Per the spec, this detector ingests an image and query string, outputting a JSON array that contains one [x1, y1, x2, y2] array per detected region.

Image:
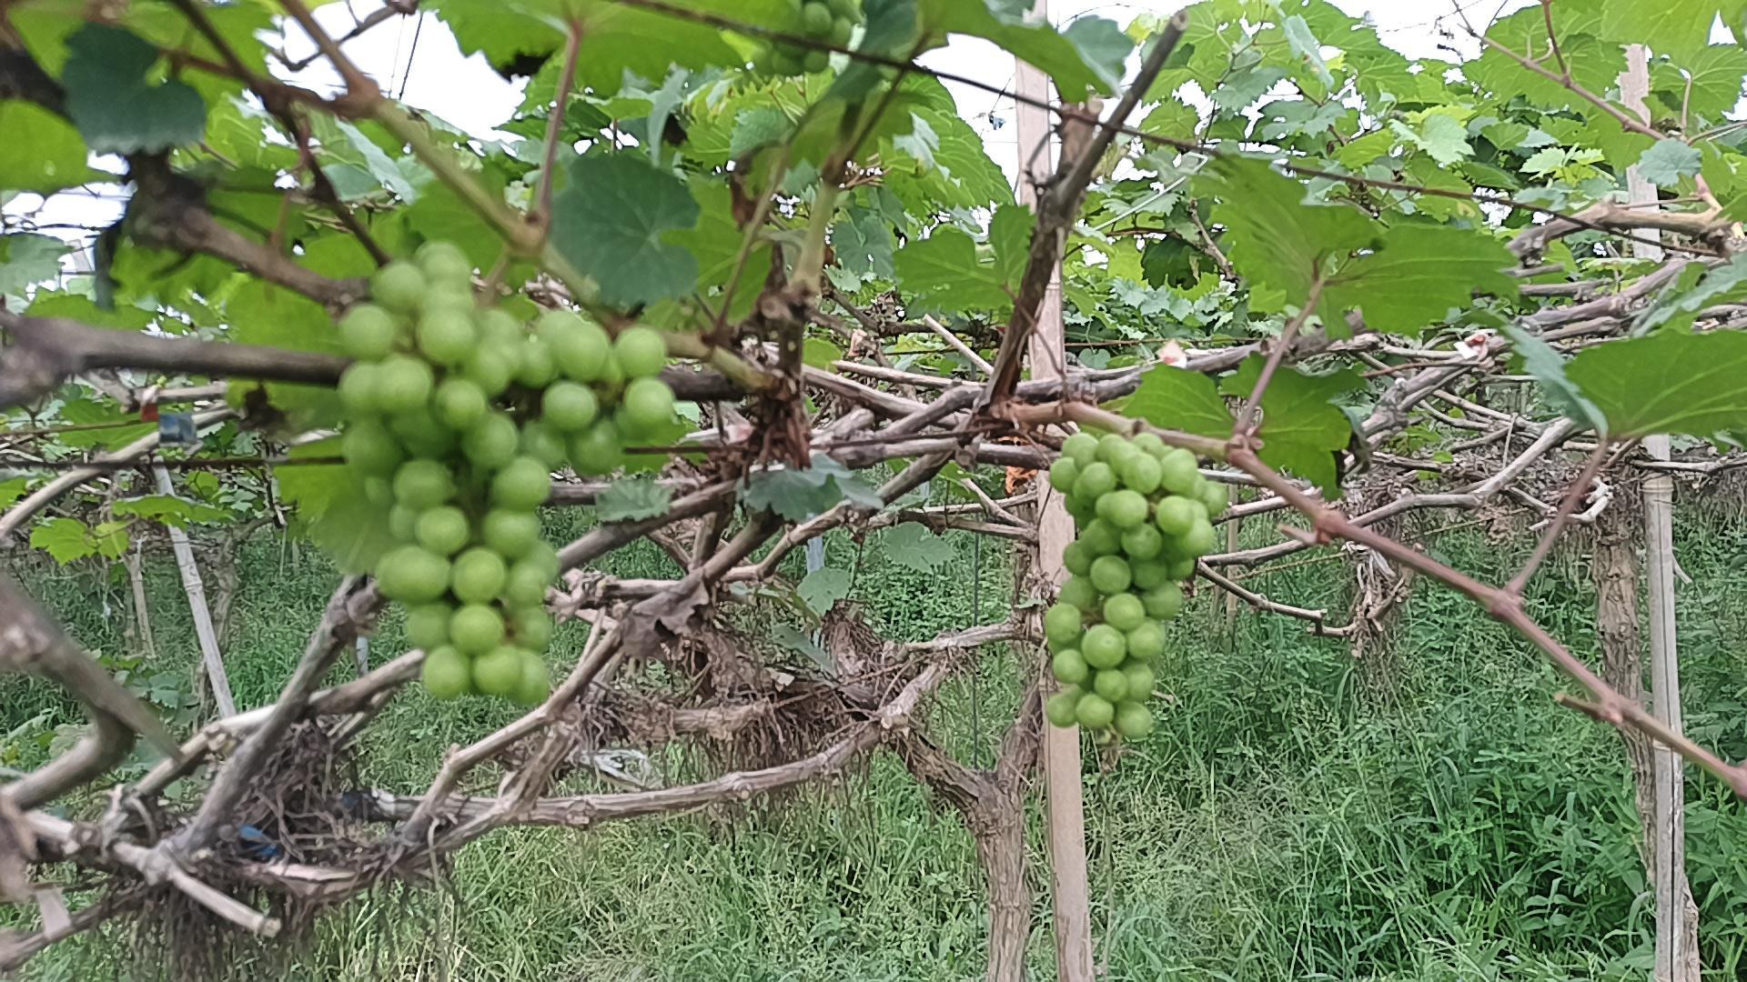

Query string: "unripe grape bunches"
[[752, 0, 857, 75], [1043, 432, 1227, 736], [338, 243, 672, 704]]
